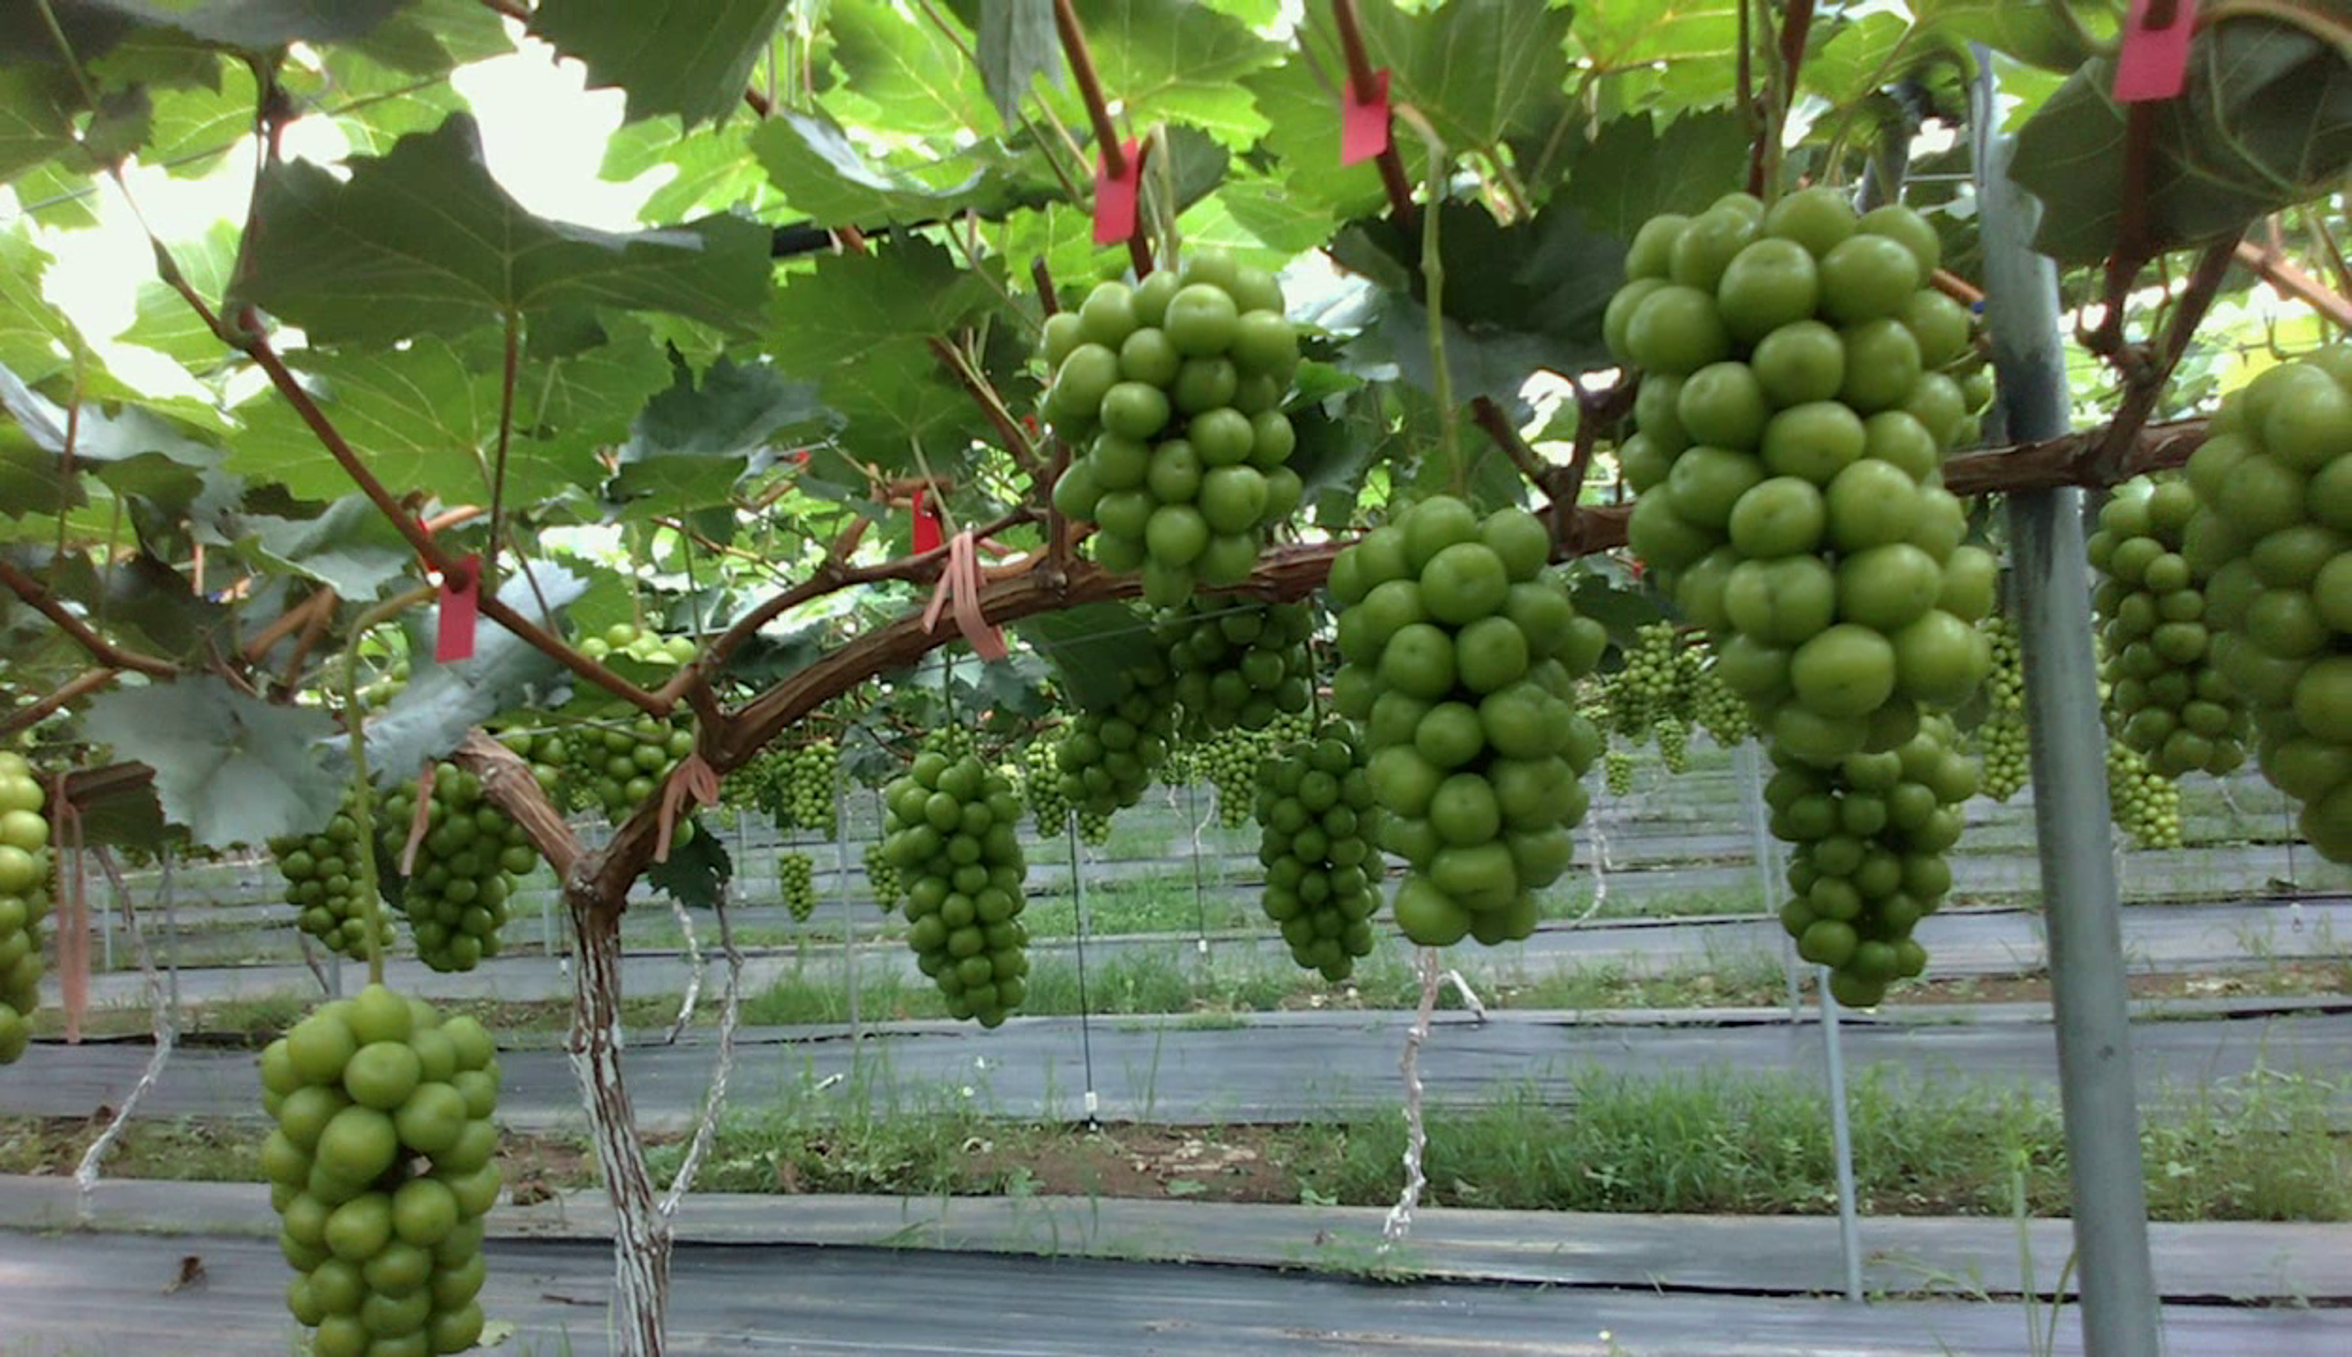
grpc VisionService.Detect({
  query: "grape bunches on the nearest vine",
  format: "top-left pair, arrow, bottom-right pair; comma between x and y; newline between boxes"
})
2182,341 -> 2350,863
1602,187 -> 1996,765
1038,247 -> 1304,607
258,982 -> 505,1355
1325,494 -> 1608,948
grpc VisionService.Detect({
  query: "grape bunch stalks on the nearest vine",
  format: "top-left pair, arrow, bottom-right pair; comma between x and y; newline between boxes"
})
2196,0 -> 2350,62
343,586 -> 441,984
1753,0 -> 1787,213
1136,124 -> 1180,275
1391,102 -> 1466,501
